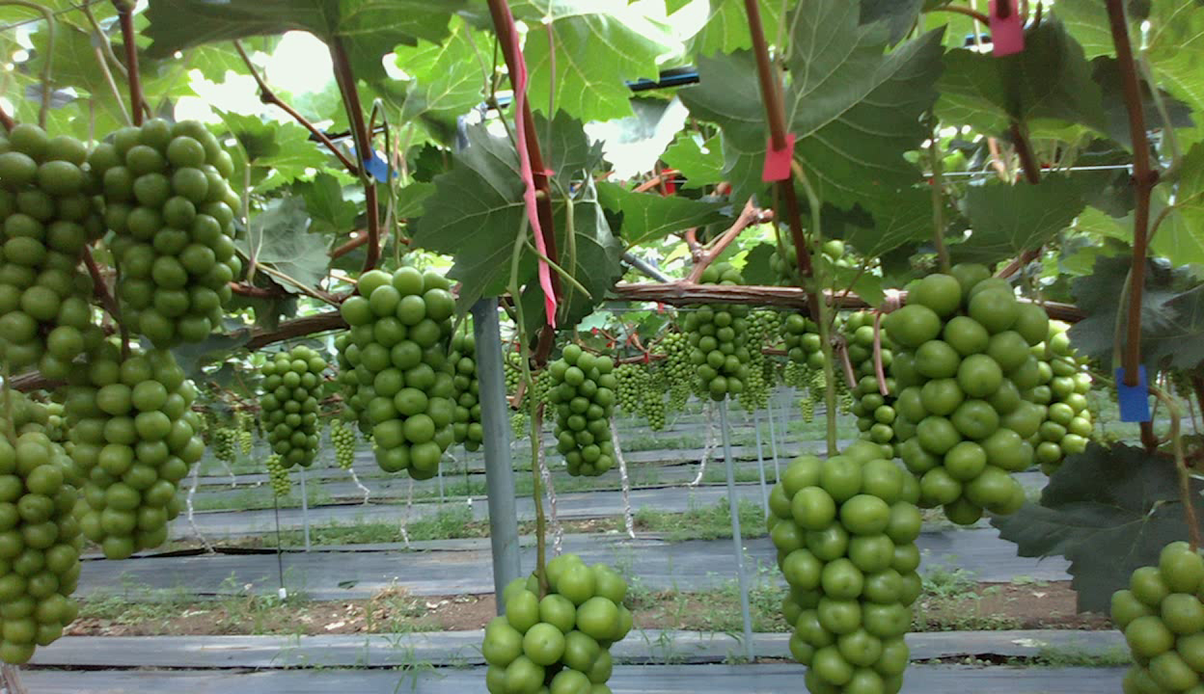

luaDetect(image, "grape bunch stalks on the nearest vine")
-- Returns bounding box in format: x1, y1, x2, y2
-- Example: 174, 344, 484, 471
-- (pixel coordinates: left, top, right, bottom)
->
80, 5, 154, 120
793, 160, 839, 458
927, 105, 951, 274
506, 206, 549, 601
0, 0, 57, 130
110, 251, 128, 367
368, 99, 401, 269
0, 340, 18, 446
1149, 385, 1198, 552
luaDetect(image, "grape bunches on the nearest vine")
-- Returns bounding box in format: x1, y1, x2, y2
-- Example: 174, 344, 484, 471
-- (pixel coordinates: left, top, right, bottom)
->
65, 341, 205, 560
481, 554, 633, 693
340, 266, 455, 482
1110, 541, 1203, 692
885, 262, 1050, 526
767, 439, 922, 693
1, 123, 107, 381
1, 385, 92, 665
87, 119, 243, 349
